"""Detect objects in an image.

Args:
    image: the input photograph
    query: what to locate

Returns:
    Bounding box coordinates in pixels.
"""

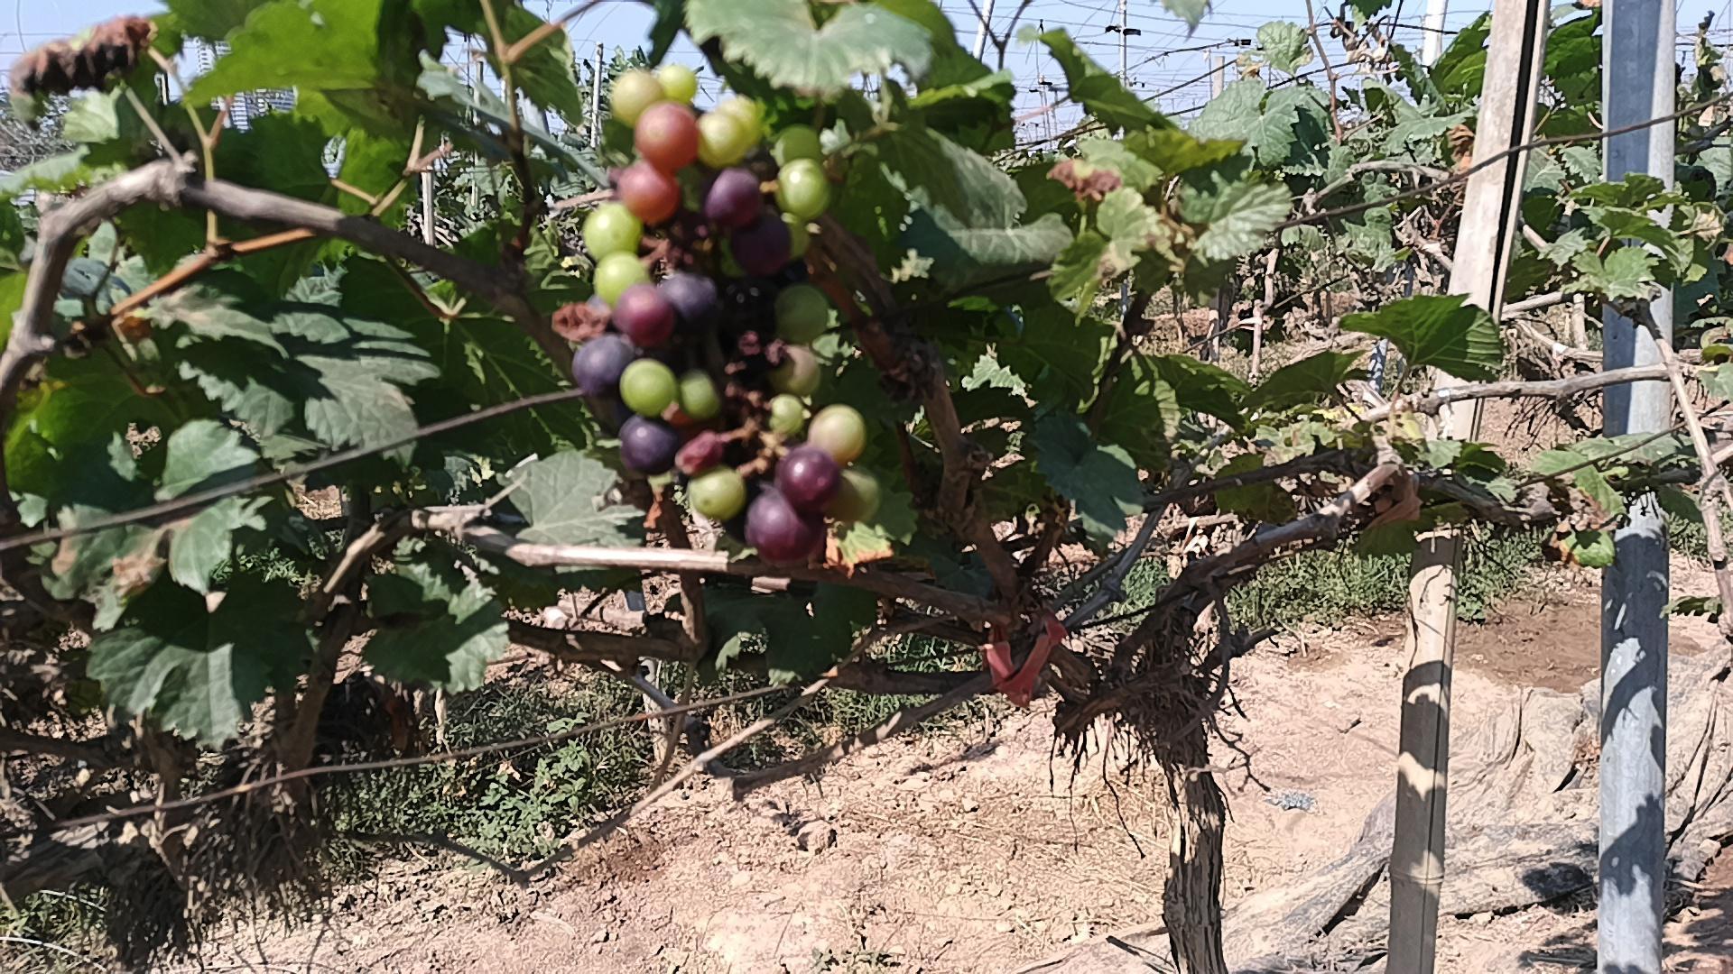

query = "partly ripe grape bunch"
[552,65,881,562]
